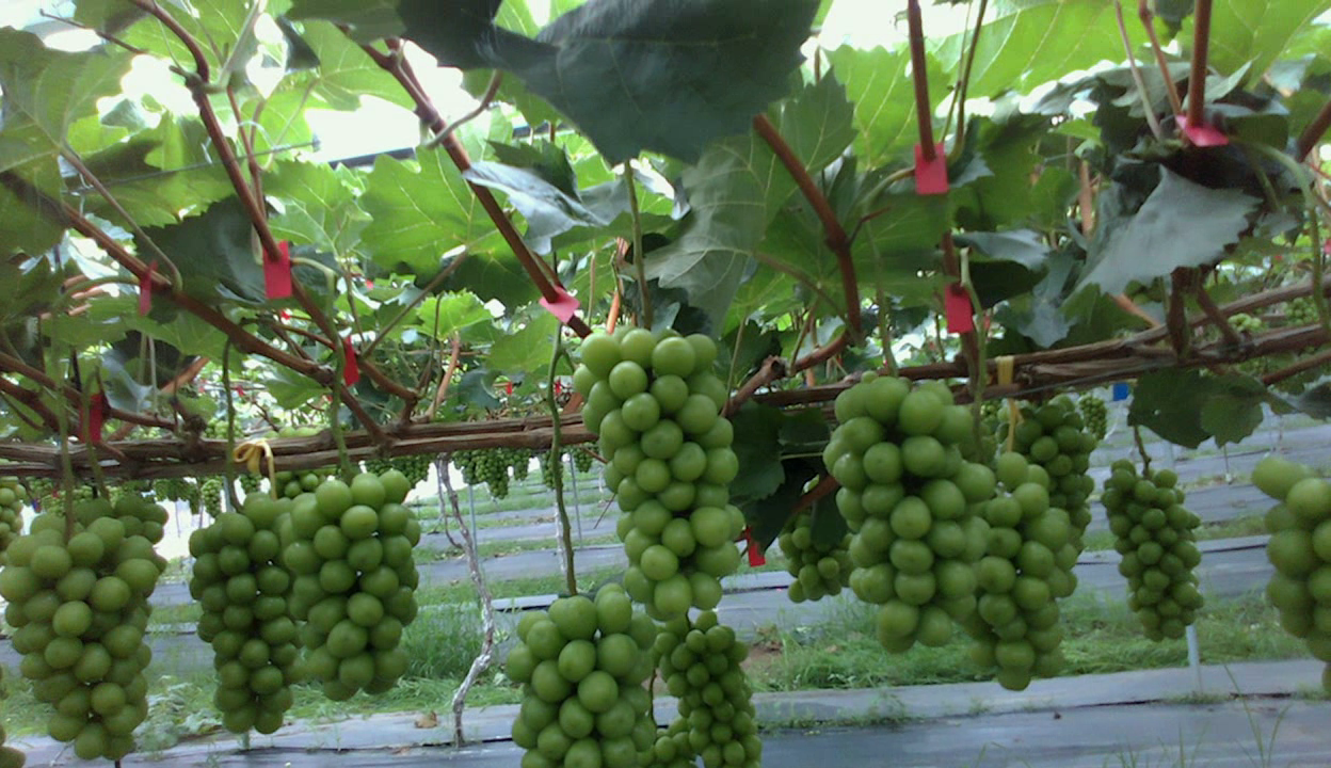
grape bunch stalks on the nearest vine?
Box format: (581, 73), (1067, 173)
(1237, 139), (1329, 334)
(546, 325), (576, 594)
(82, 367), (110, 499)
(960, 250), (988, 459)
(302, 258), (352, 483)
(49, 276), (134, 541)
(624, 161), (653, 330)
(222, 340), (240, 509)
(861, 172), (902, 374)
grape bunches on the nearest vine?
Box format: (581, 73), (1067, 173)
(77, 497), (167, 543)
(282, 470), (421, 702)
(504, 582), (657, 767)
(1249, 452), (1330, 692)
(960, 451), (1077, 689)
(573, 325), (743, 622)
(191, 492), (305, 735)
(1, 512), (160, 762)
(823, 372), (994, 655)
